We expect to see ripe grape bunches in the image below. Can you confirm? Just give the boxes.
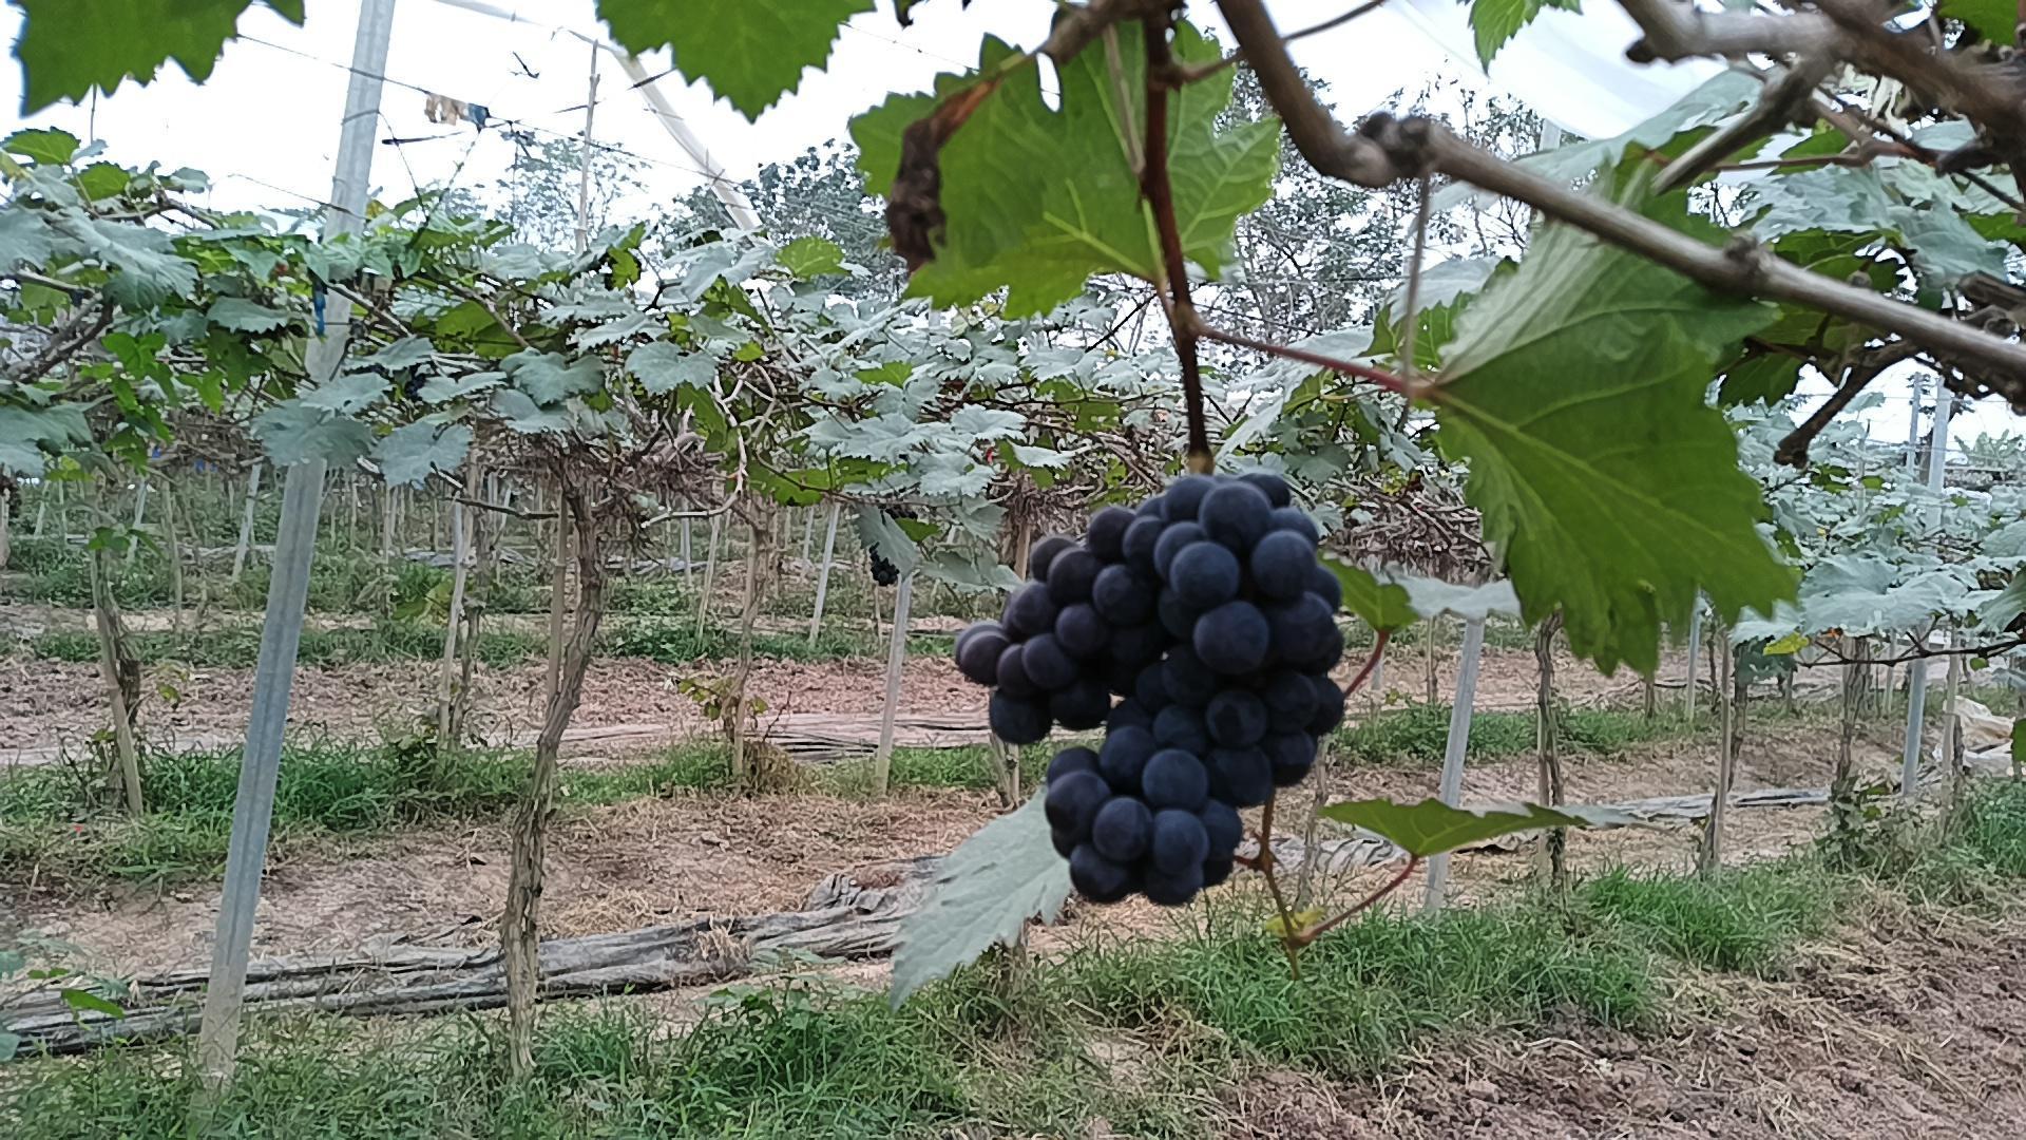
[865,503,920,587]
[959,475,1344,906]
